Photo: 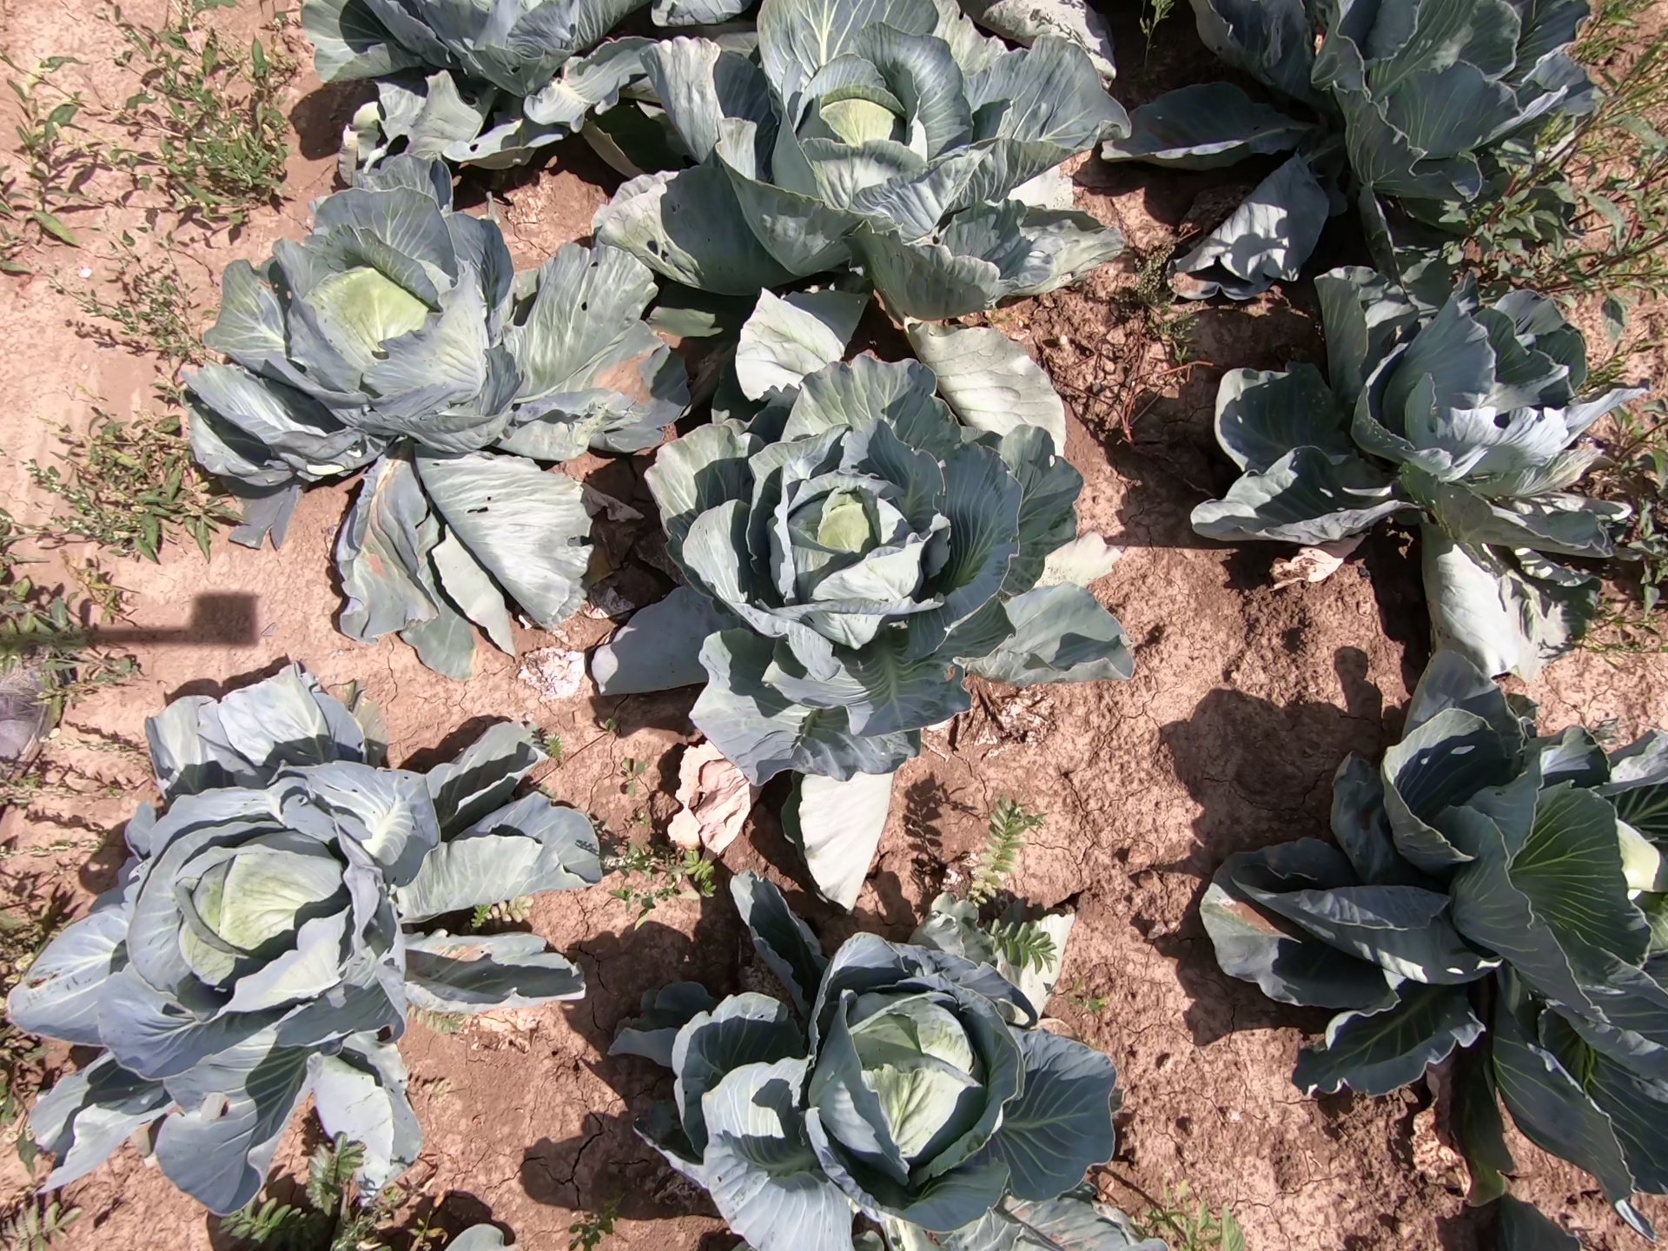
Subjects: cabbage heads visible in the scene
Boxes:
[820,996,985,1162]
[285,256,480,415]
[793,94,931,238]
[781,488,922,625]
[173,831,359,996]
[1482,789,1666,976]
